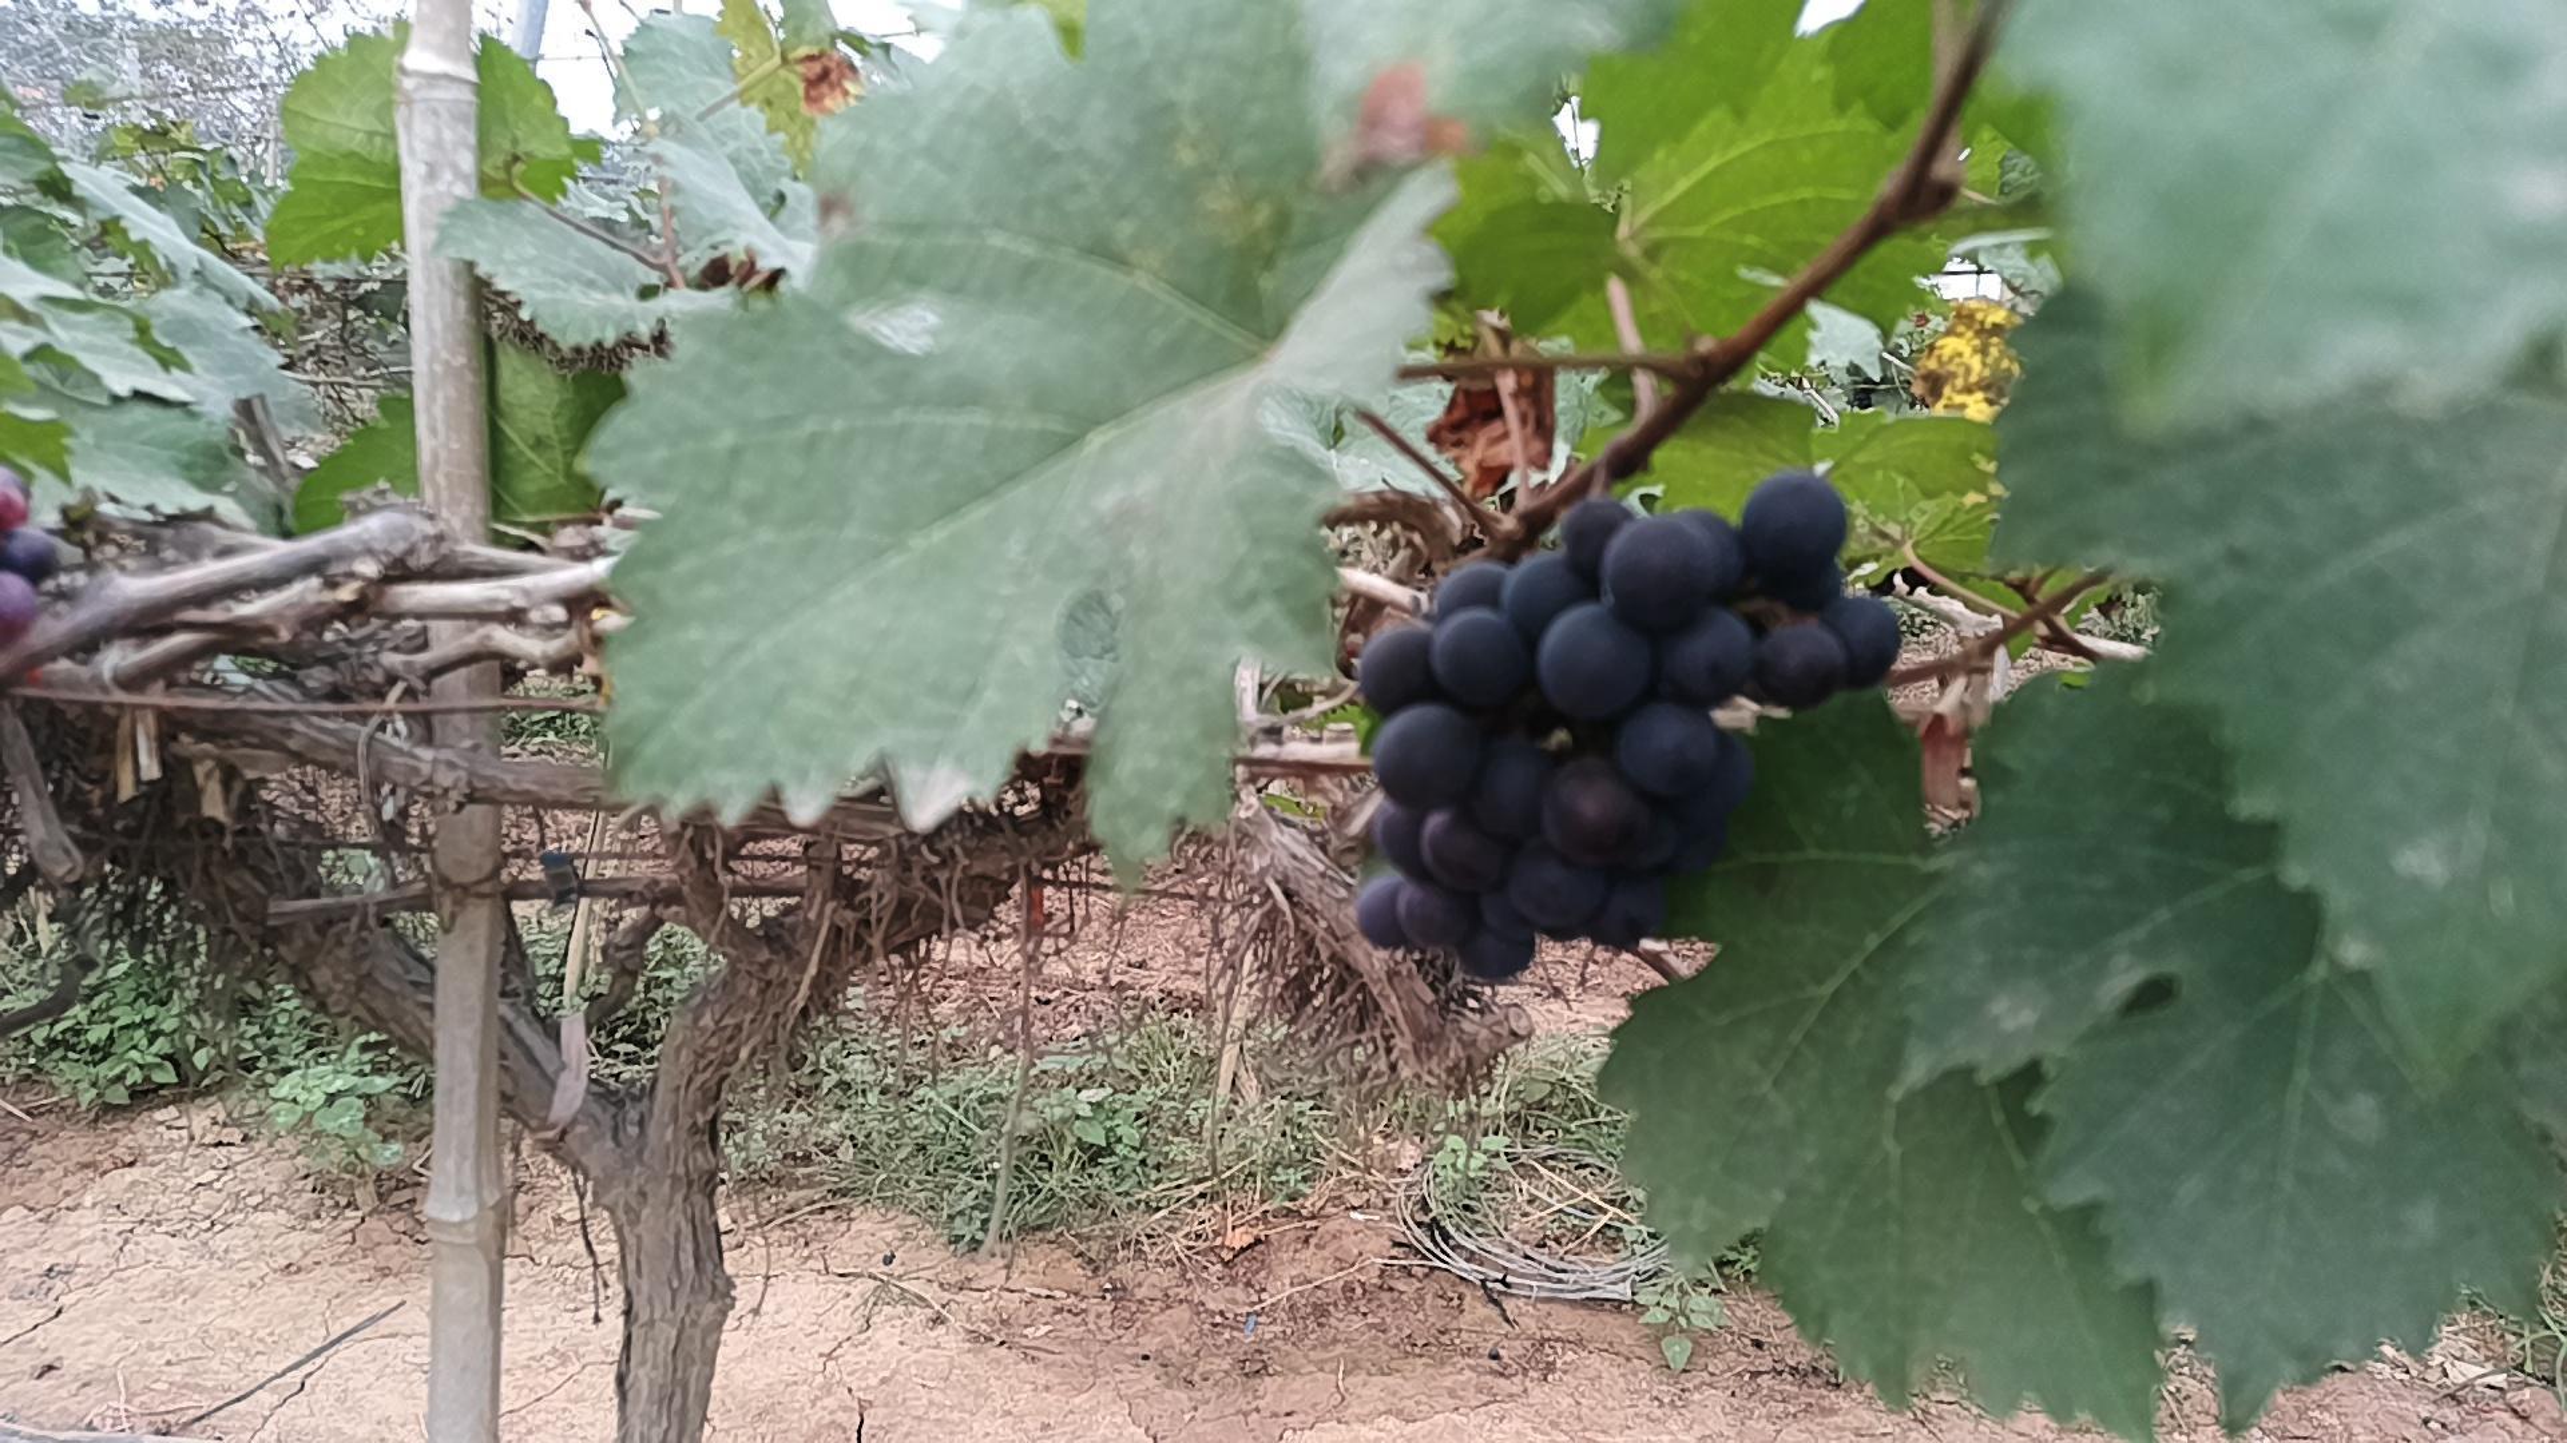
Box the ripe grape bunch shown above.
[1361,470,1899,979]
